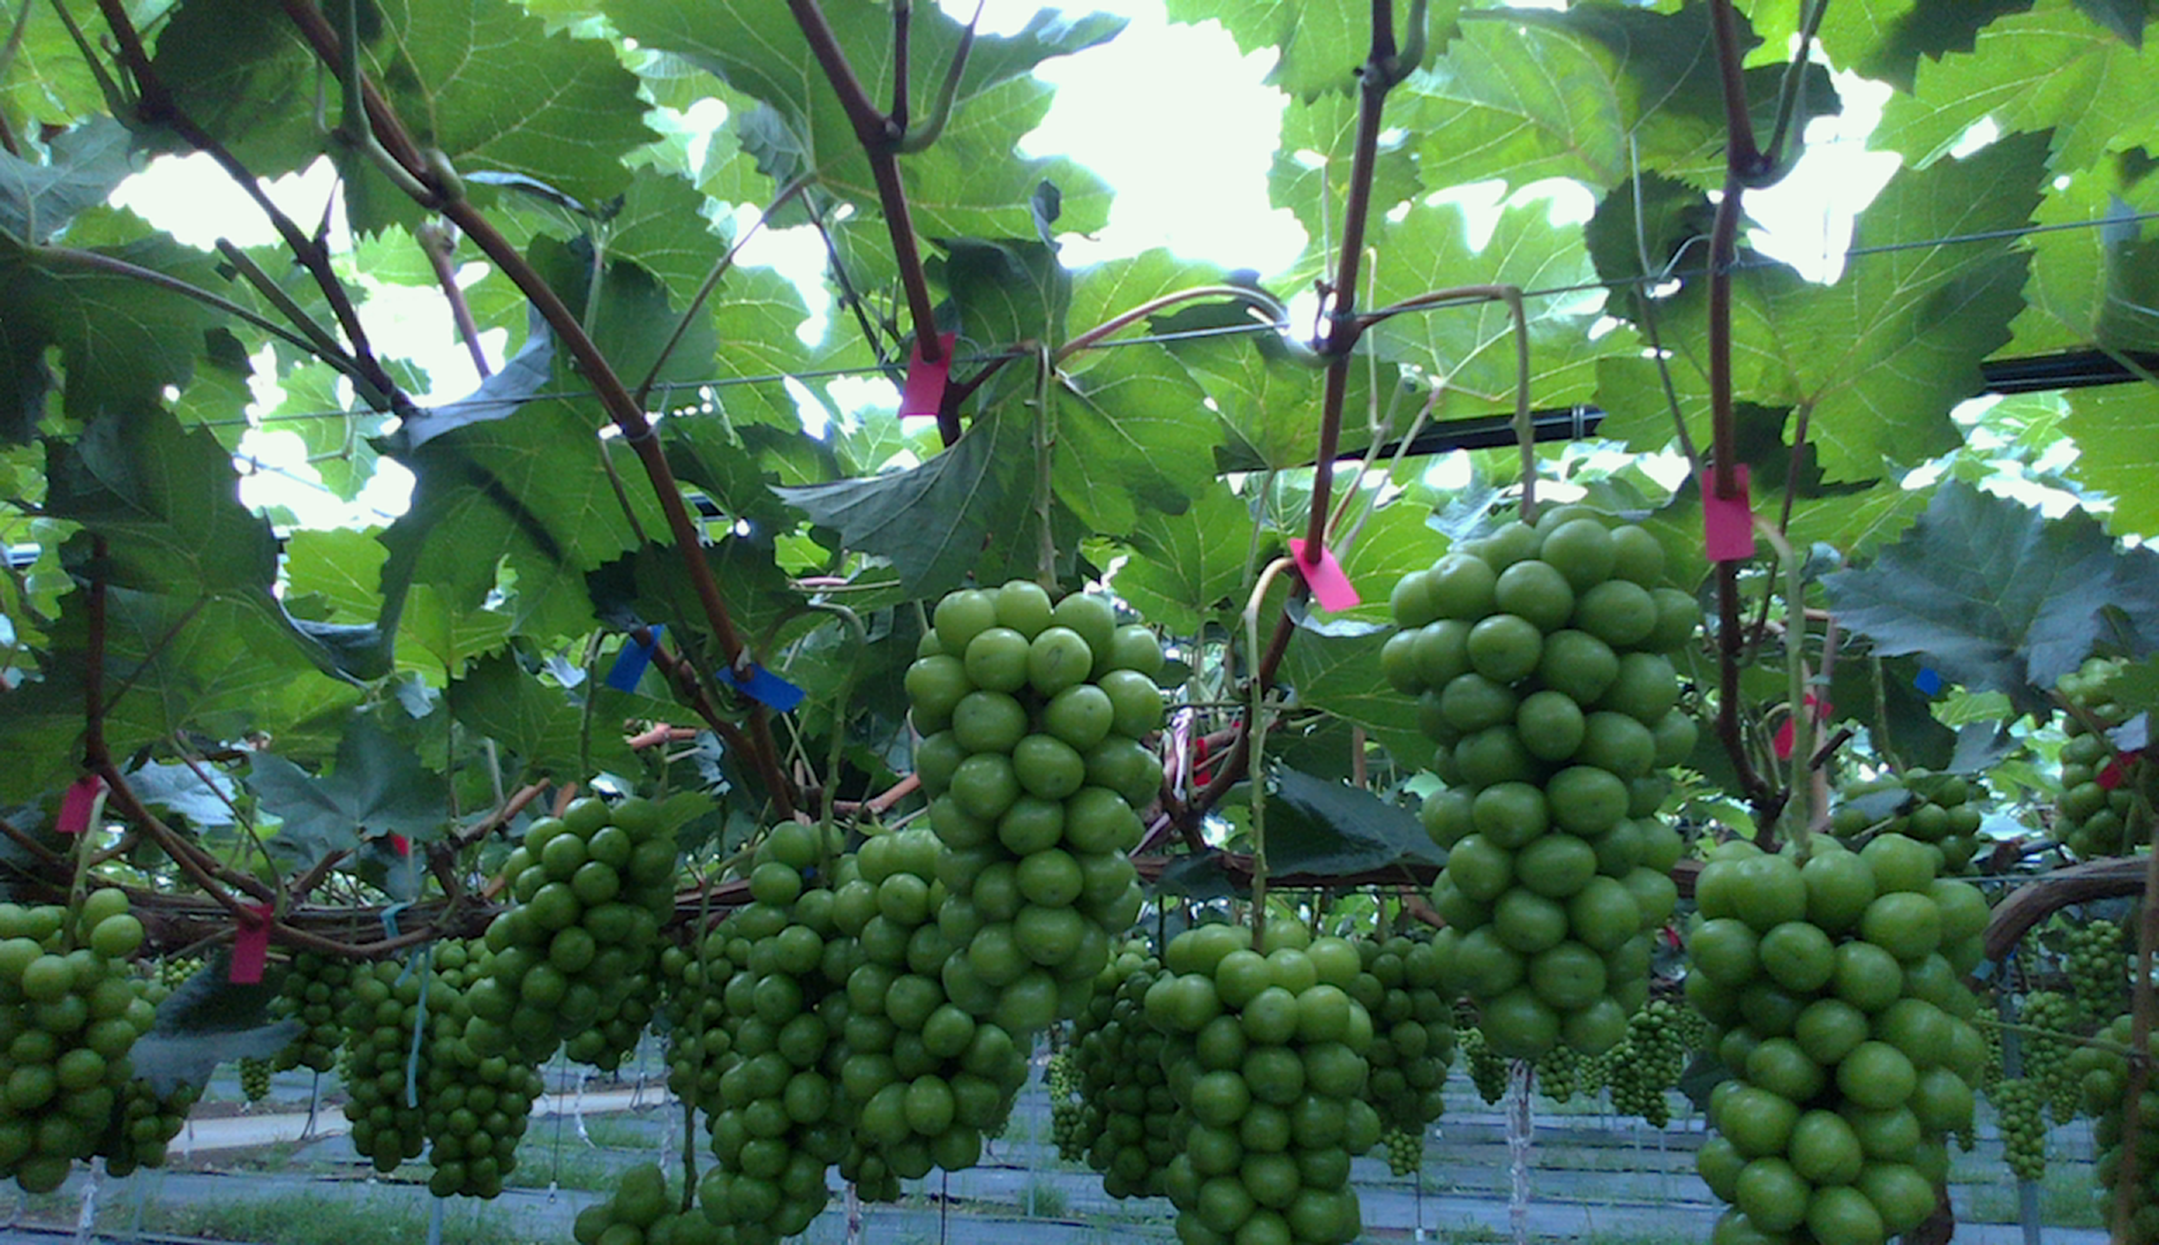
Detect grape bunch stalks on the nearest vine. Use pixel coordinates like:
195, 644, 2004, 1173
61, 787, 109, 956
756, 602, 868, 891
1021, 339, 1062, 607
580, 628, 609, 797
1752, 512, 1808, 866
1244, 555, 1296, 954
1406, 284, 1534, 526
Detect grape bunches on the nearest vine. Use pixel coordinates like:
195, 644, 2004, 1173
1145, 916, 1384, 1243
1682, 832, 1989, 1243
836, 827, 1033, 1181
2, 889, 156, 1197
903, 579, 1168, 1034
695, 820, 868, 1243
464, 794, 678, 1065
1381, 505, 1699, 1060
